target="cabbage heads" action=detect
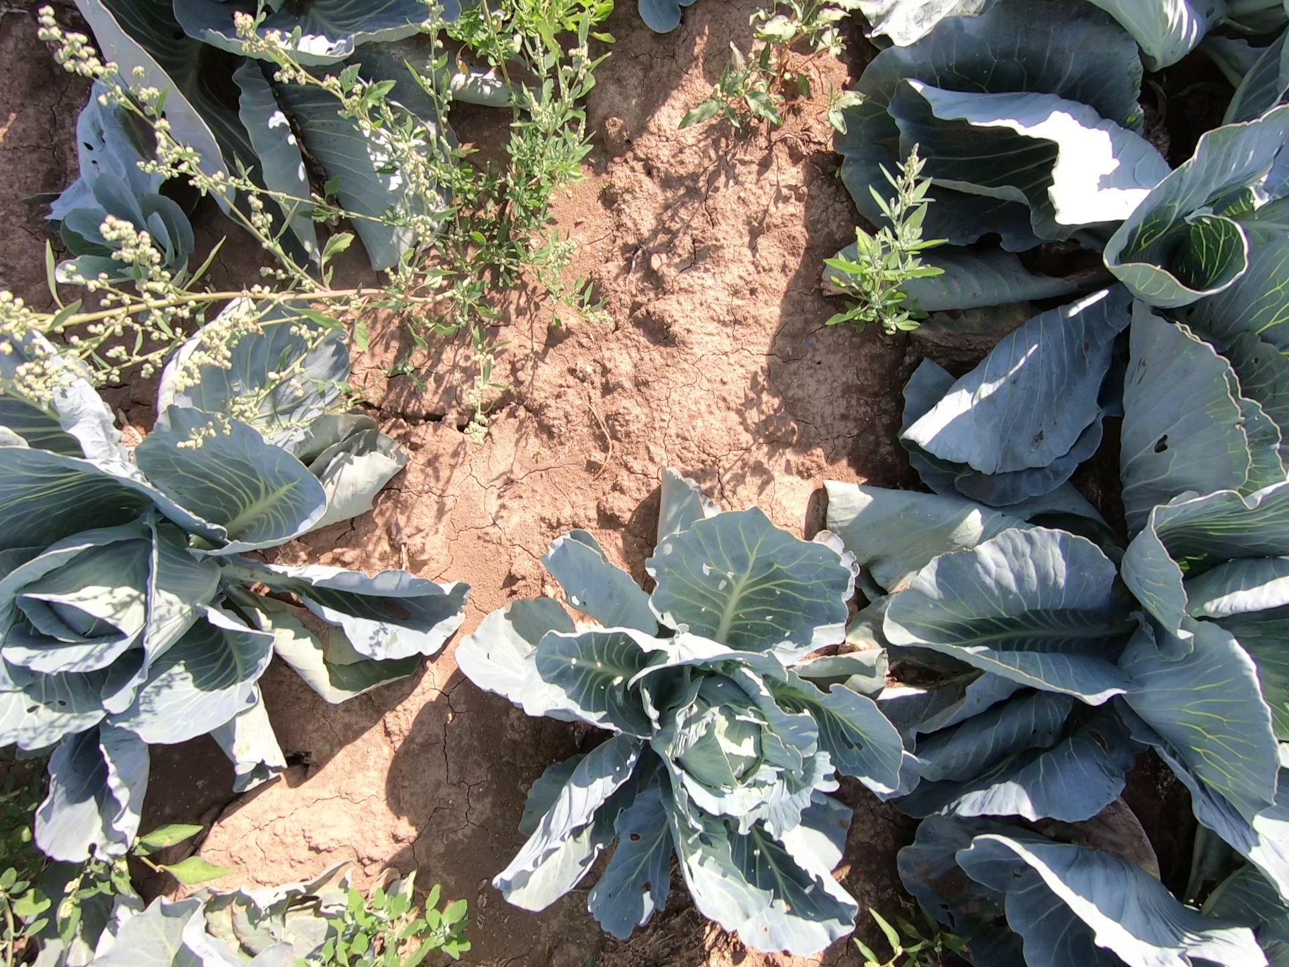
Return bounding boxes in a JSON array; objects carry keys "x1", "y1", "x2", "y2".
[
  {"x1": 50, "y1": 541, "x2": 166, "y2": 634},
  {"x1": 674, "y1": 680, "x2": 763, "y2": 790}
]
